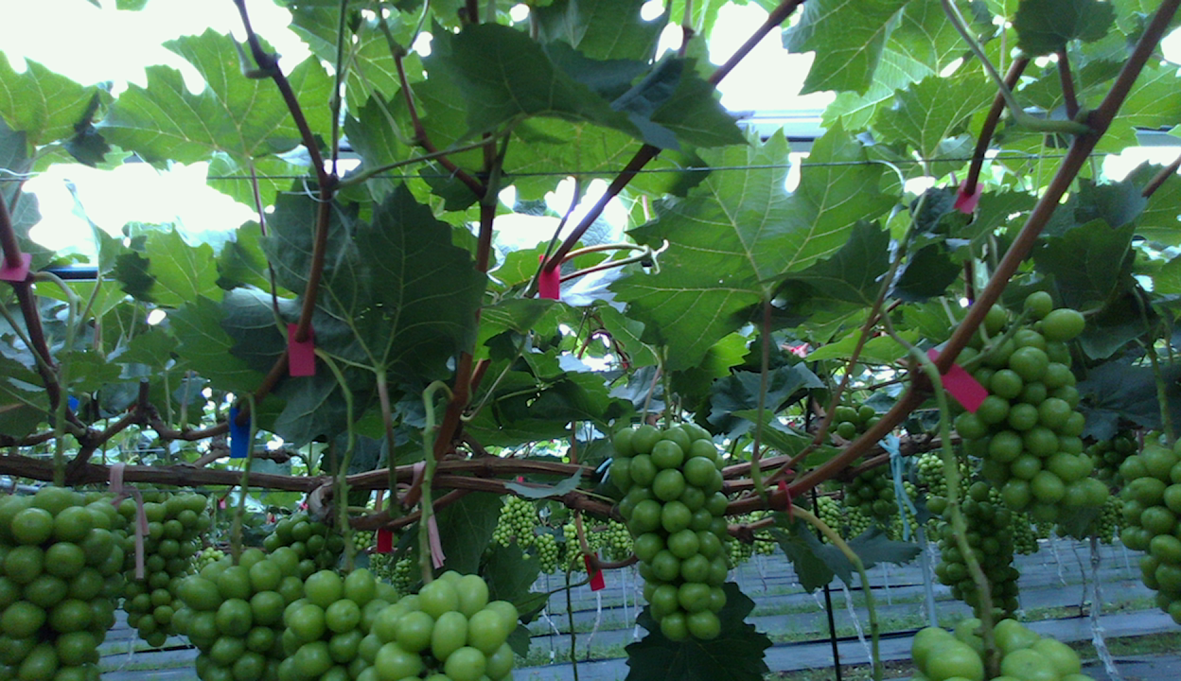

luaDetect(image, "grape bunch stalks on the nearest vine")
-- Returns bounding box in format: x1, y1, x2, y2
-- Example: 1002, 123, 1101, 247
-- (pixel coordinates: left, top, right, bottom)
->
962, 343, 997, 366
910, 347, 996, 673
317, 350, 354, 570
34, 271, 77, 483
662, 367, 672, 428
1133, 289, 1173, 441
416, 380, 449, 583
229, 393, 257, 564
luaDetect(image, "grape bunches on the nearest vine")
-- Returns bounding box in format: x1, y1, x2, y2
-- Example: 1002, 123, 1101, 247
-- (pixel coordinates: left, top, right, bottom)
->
0, 487, 123, 680
1119, 433, 1180, 624
277, 568, 398, 680
359, 571, 519, 680
957, 289, 1106, 527
169, 545, 306, 680
611, 423, 731, 642
910, 618, 1091, 680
